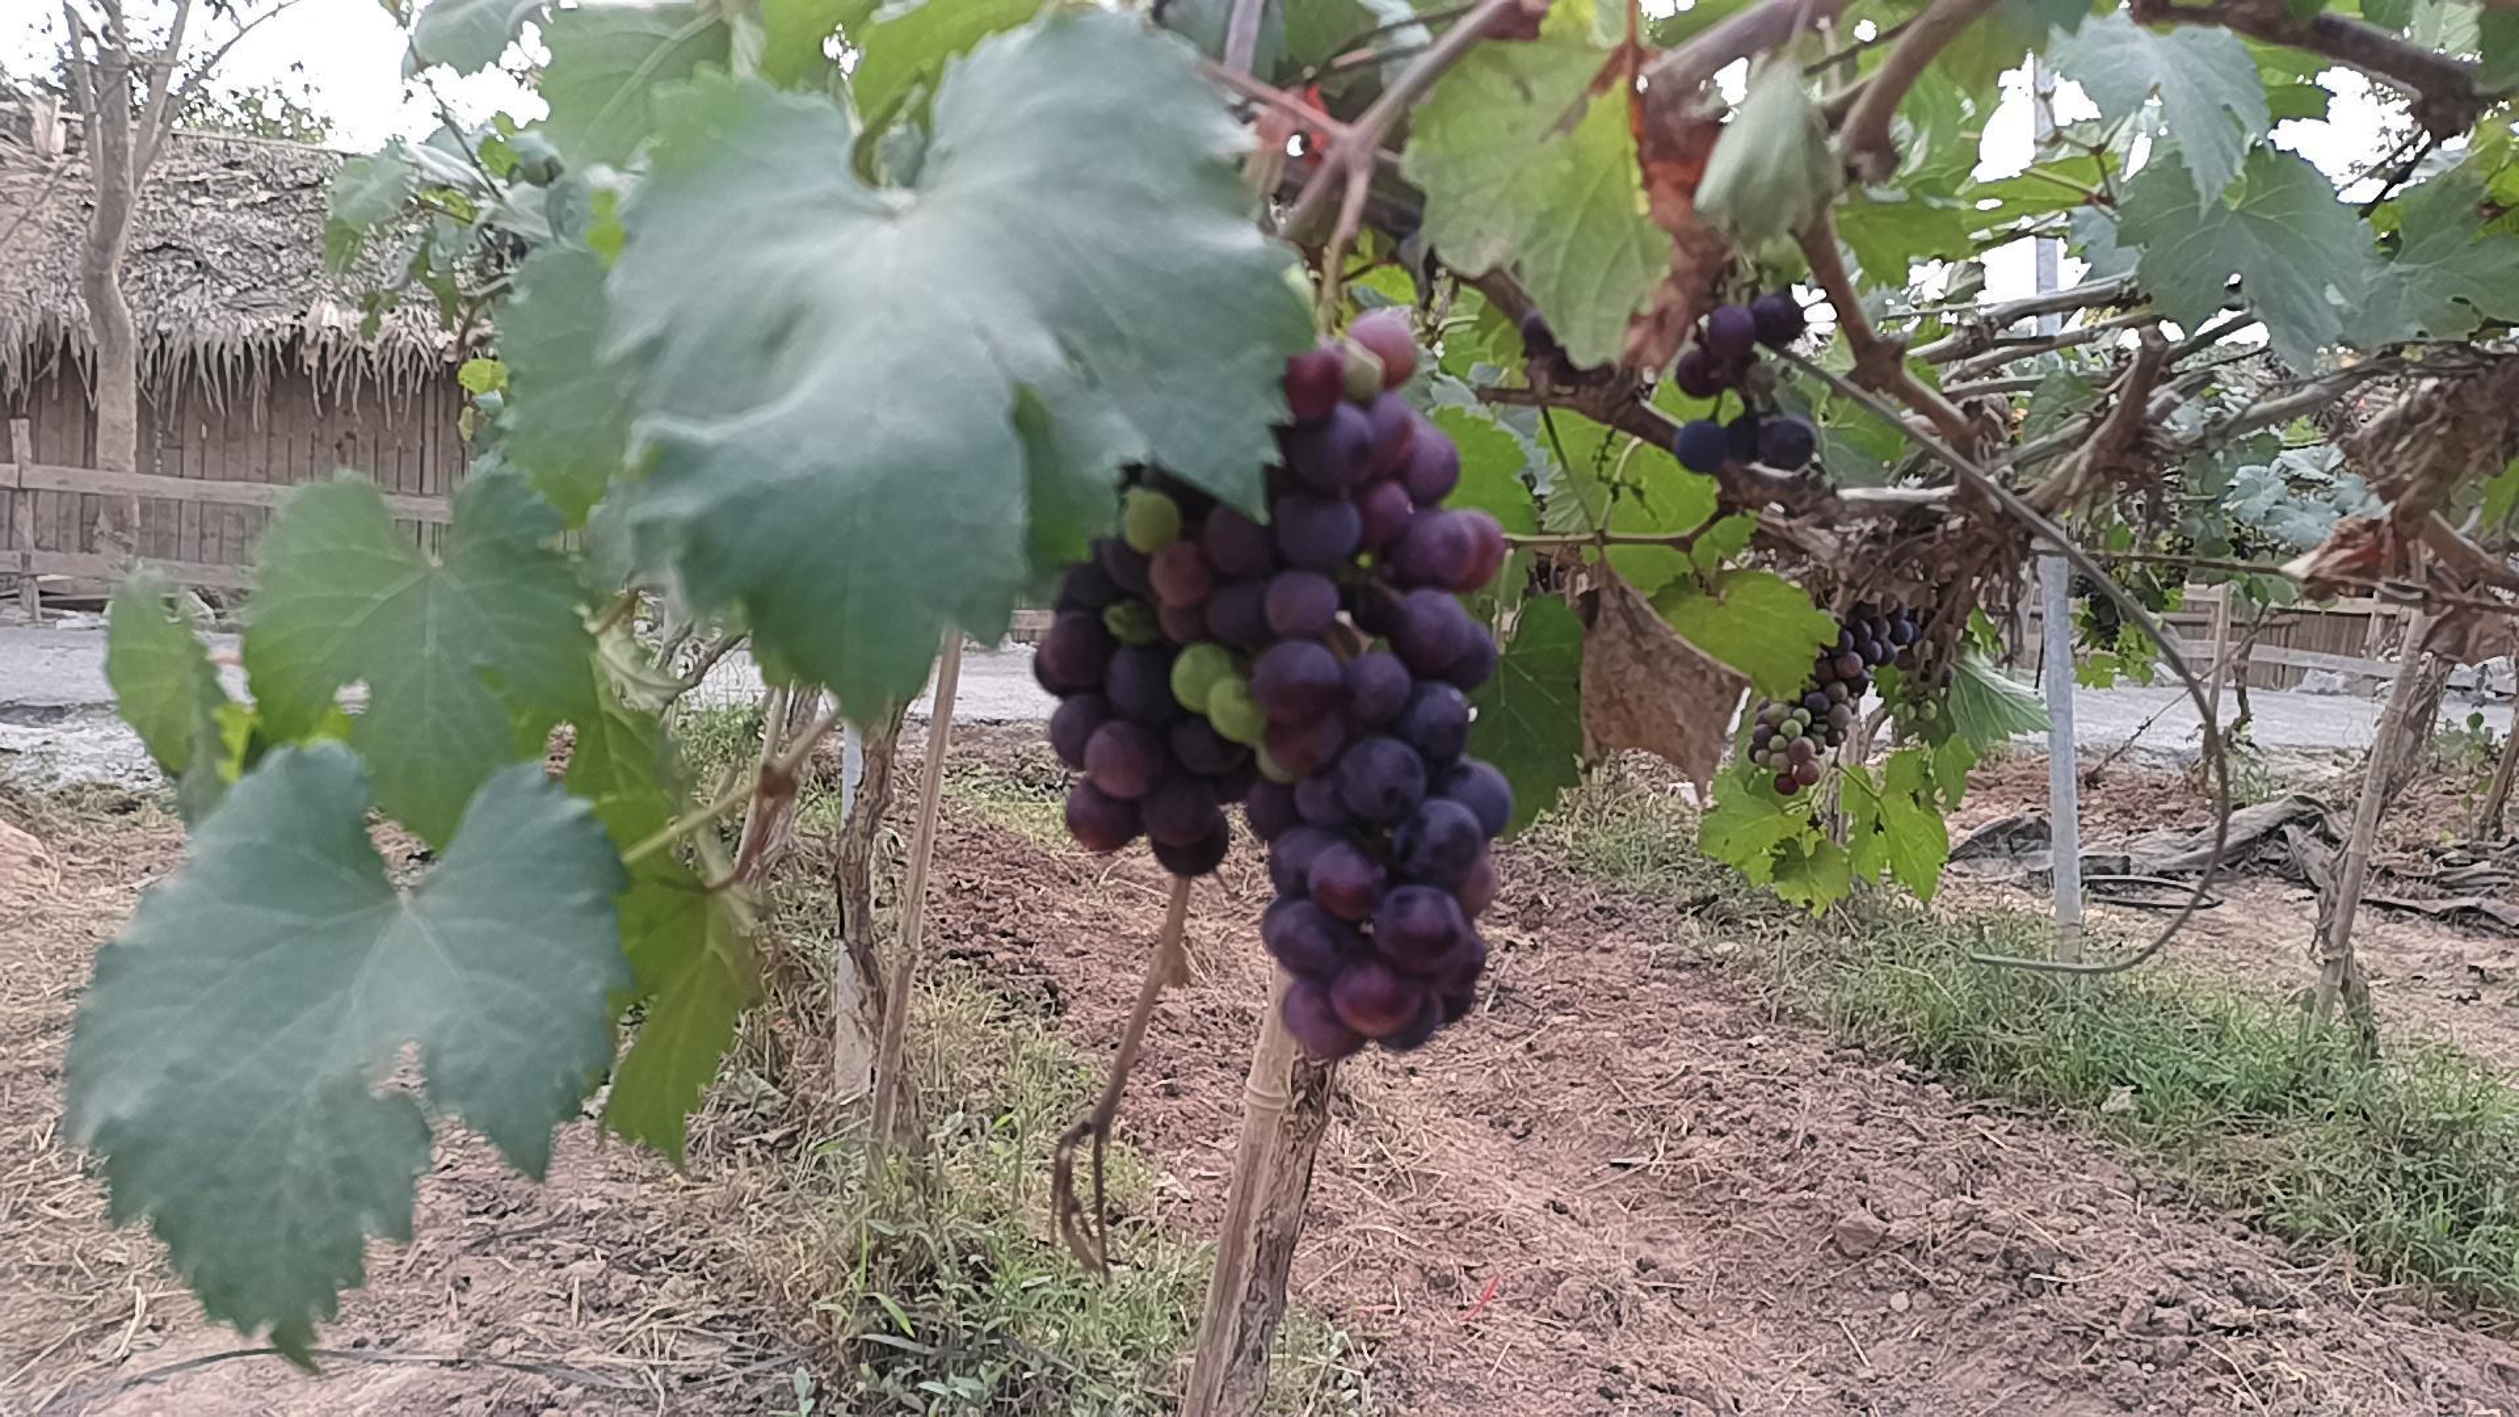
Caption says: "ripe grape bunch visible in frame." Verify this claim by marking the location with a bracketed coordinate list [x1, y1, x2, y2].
[1671, 294, 1816, 474]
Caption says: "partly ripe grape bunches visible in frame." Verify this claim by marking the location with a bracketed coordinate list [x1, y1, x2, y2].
[1738, 605, 1921, 794]
[1036, 312, 1511, 1060]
